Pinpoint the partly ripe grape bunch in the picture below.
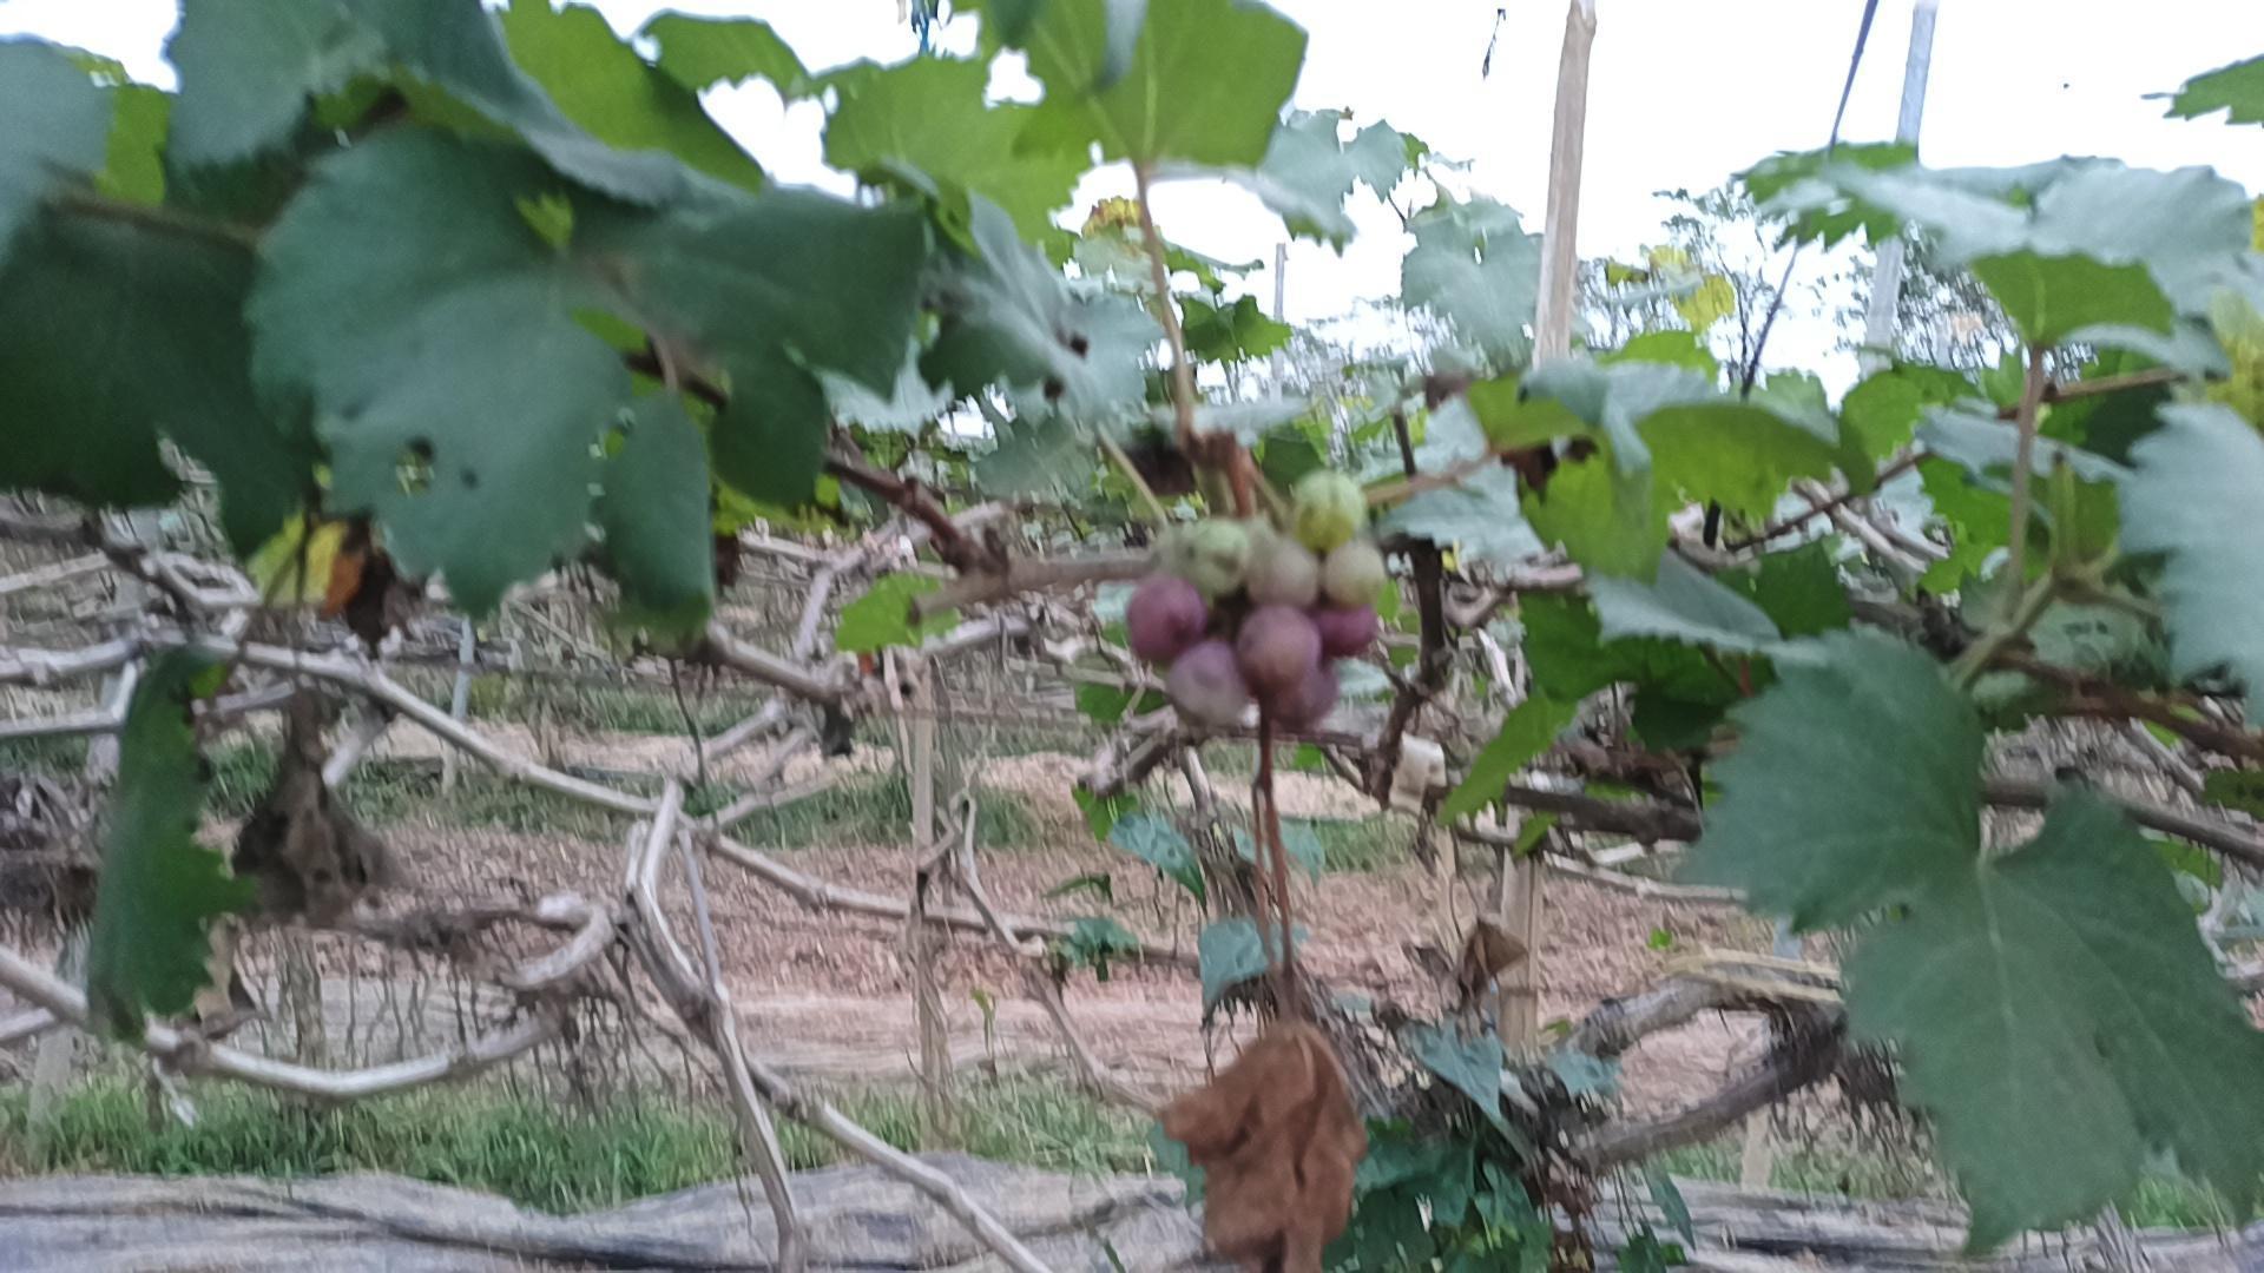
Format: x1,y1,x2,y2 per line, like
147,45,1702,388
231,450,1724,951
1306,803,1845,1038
1127,471,1387,731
